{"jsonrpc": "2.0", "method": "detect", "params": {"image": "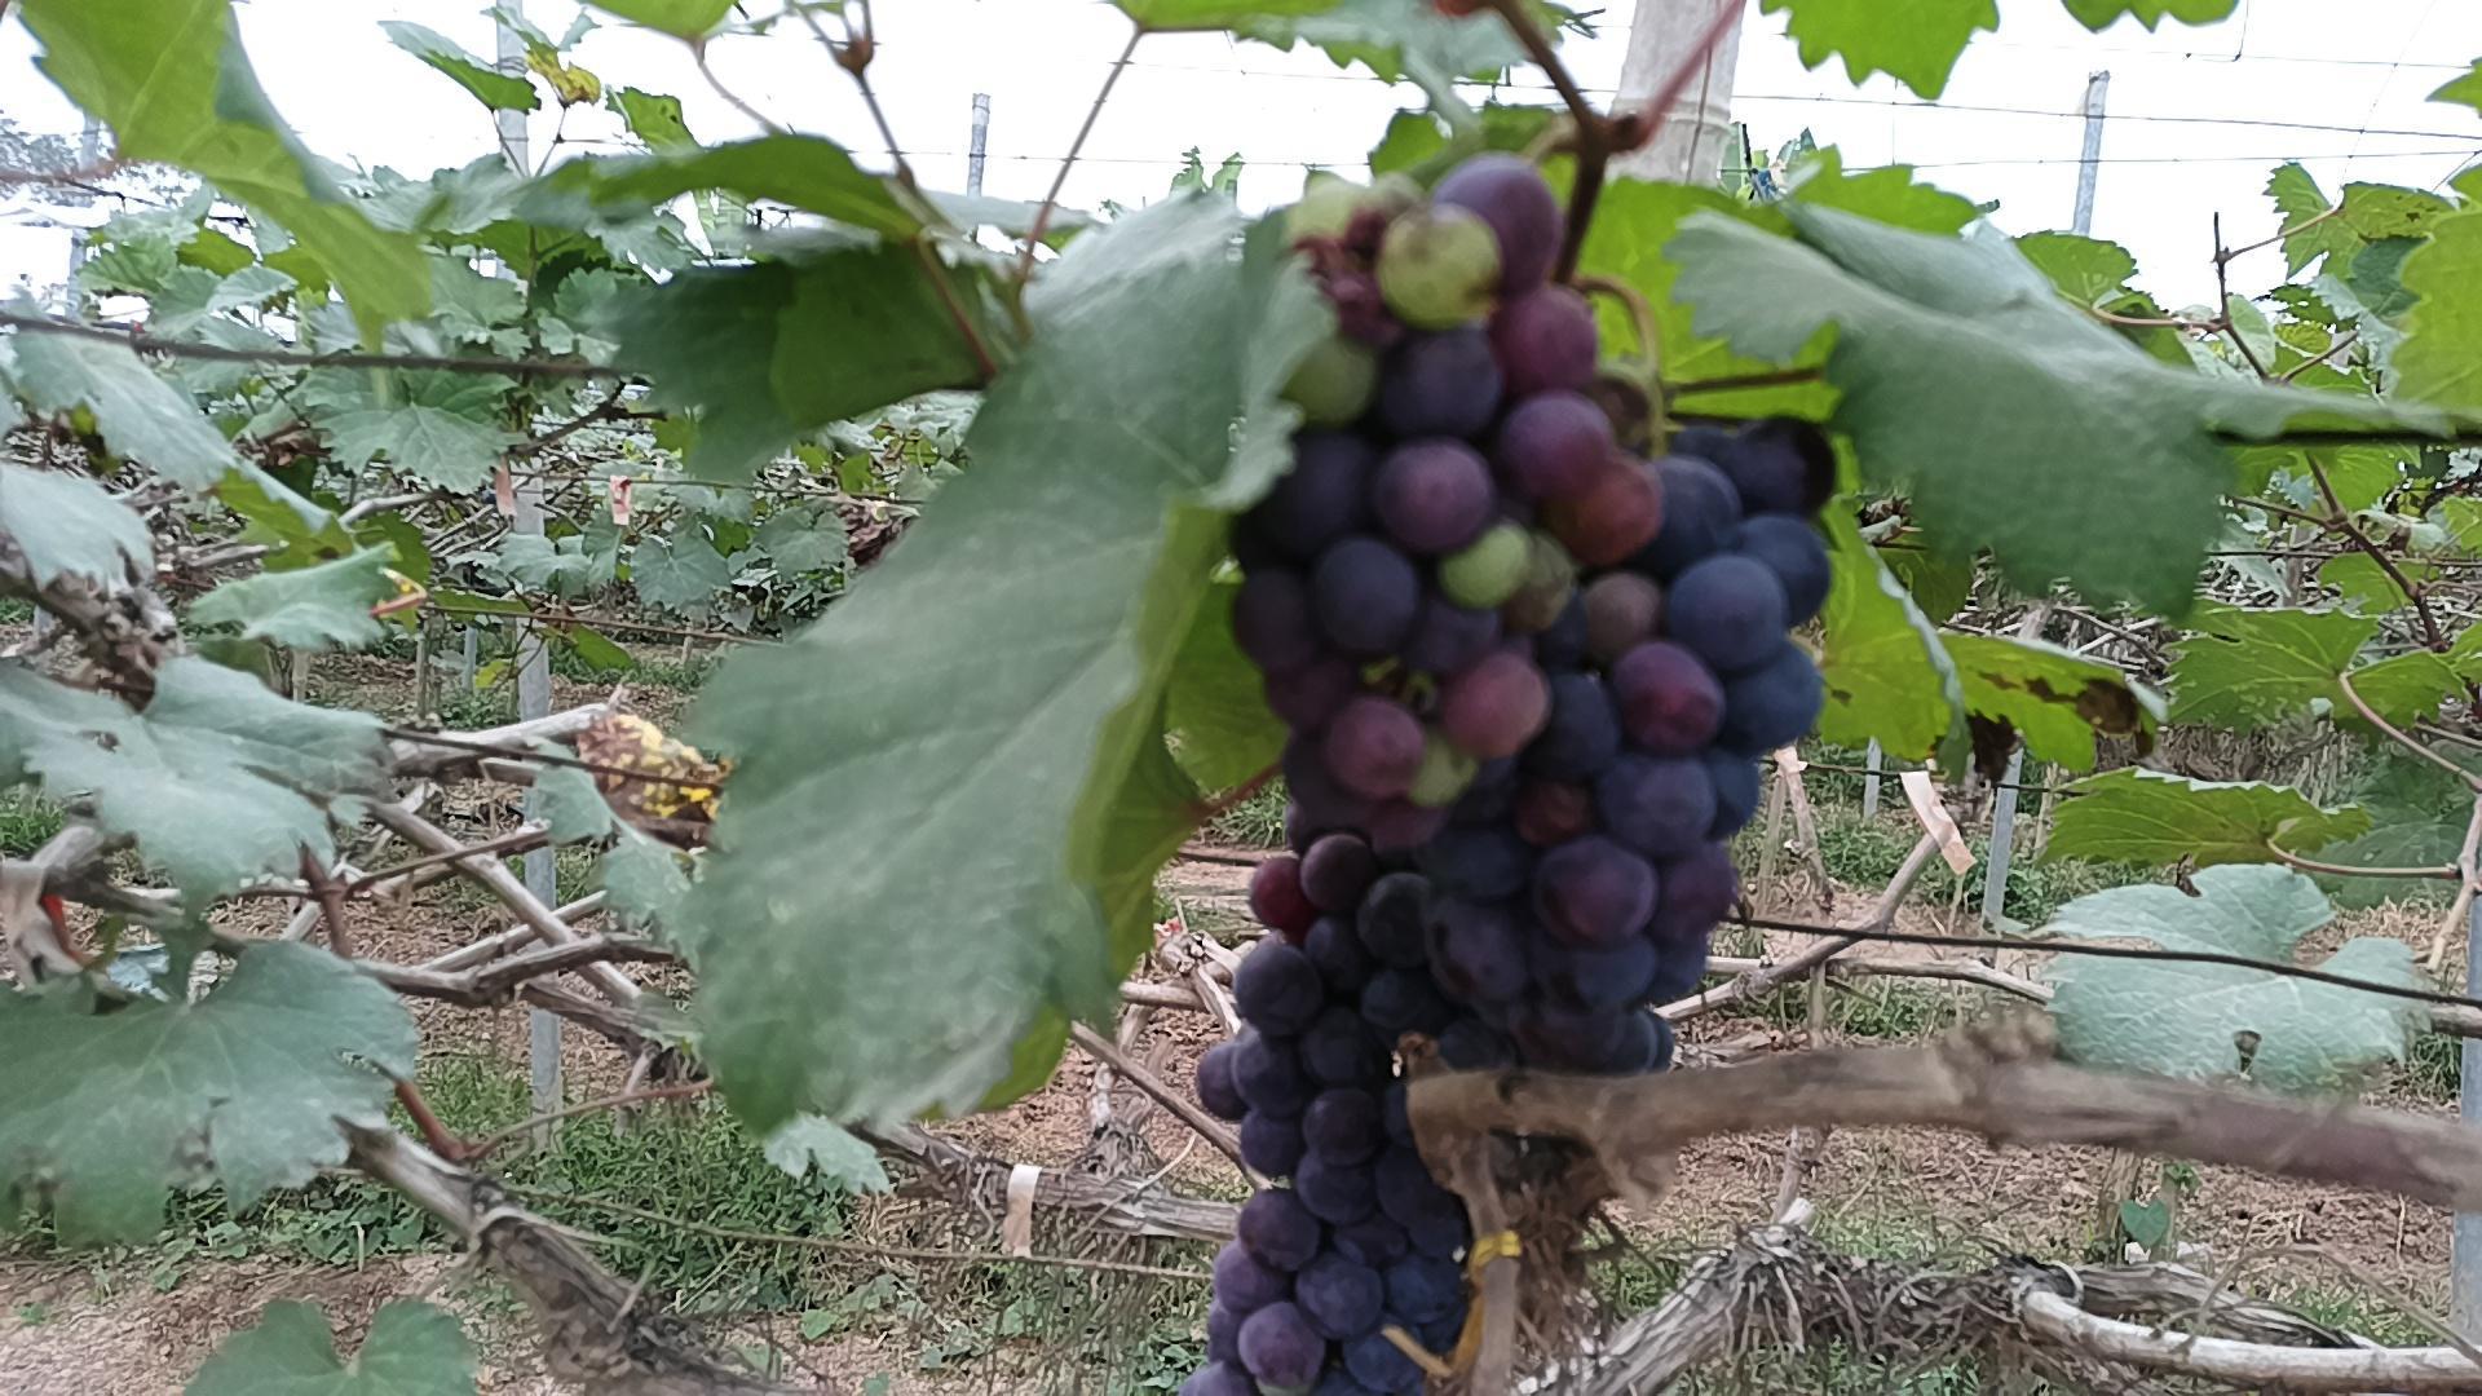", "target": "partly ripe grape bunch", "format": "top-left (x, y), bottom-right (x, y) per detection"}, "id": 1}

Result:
top-left (1180, 154), bottom-right (1832, 1395)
